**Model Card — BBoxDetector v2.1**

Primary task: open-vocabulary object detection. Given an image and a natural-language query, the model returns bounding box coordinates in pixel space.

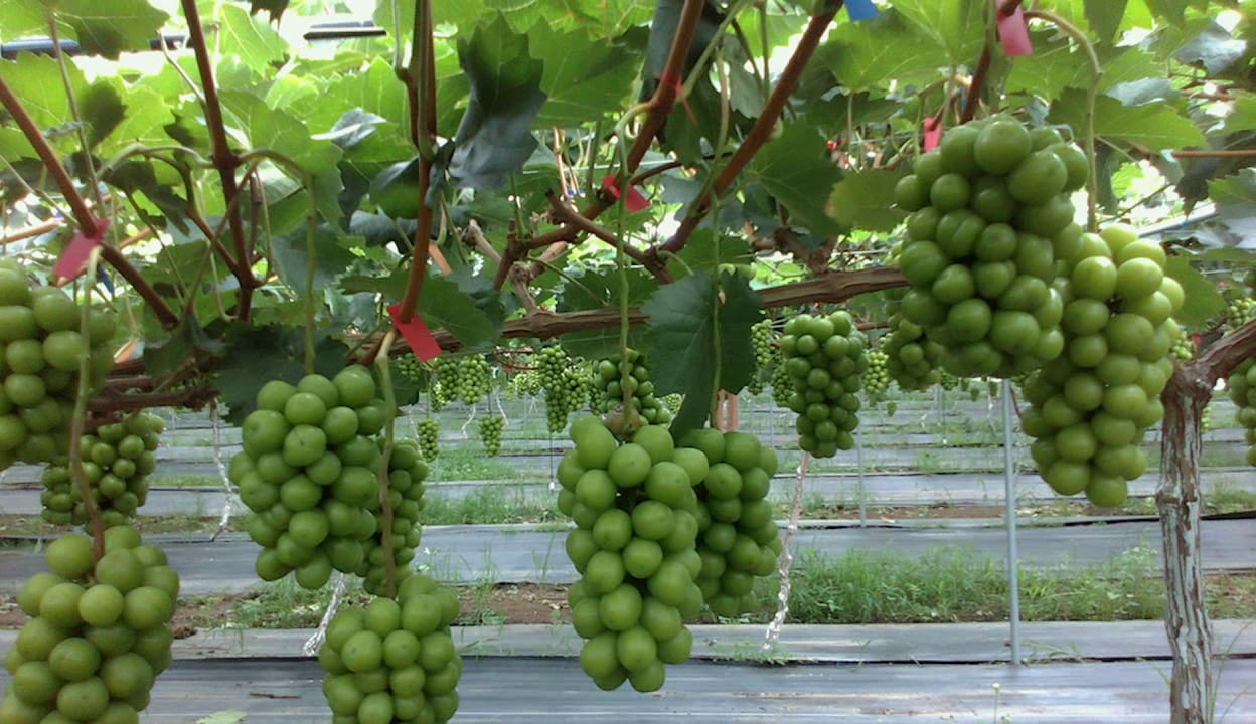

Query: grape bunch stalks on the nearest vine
[239,146,316,375]
[376,324,397,599]
[70,244,106,585]
[985,0,999,116]
[709,187,721,430]
[1024,9,1102,234]
[614,102,655,442]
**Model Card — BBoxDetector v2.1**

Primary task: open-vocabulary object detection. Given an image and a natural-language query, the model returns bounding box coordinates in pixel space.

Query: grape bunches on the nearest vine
[227,364,384,591]
[0,256,117,473]
[893,113,1089,380]
[318,574,464,723]
[678,428,784,617]
[0,524,180,723]
[556,406,709,692]
[1019,223,1187,508]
